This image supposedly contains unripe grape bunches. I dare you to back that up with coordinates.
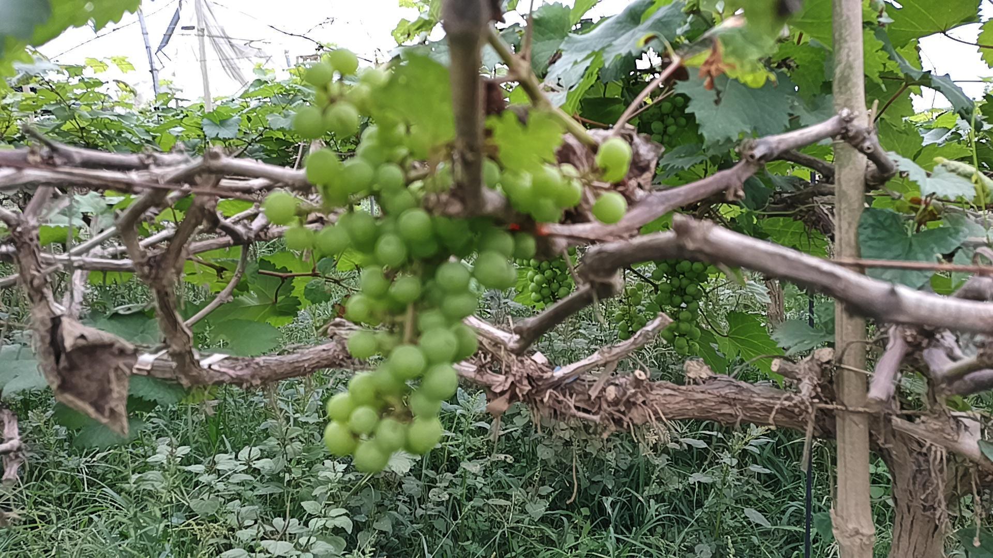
[652,261,708,353]
[517,245,577,308]
[646,95,690,147]
[612,286,647,339]
[263,49,633,473]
